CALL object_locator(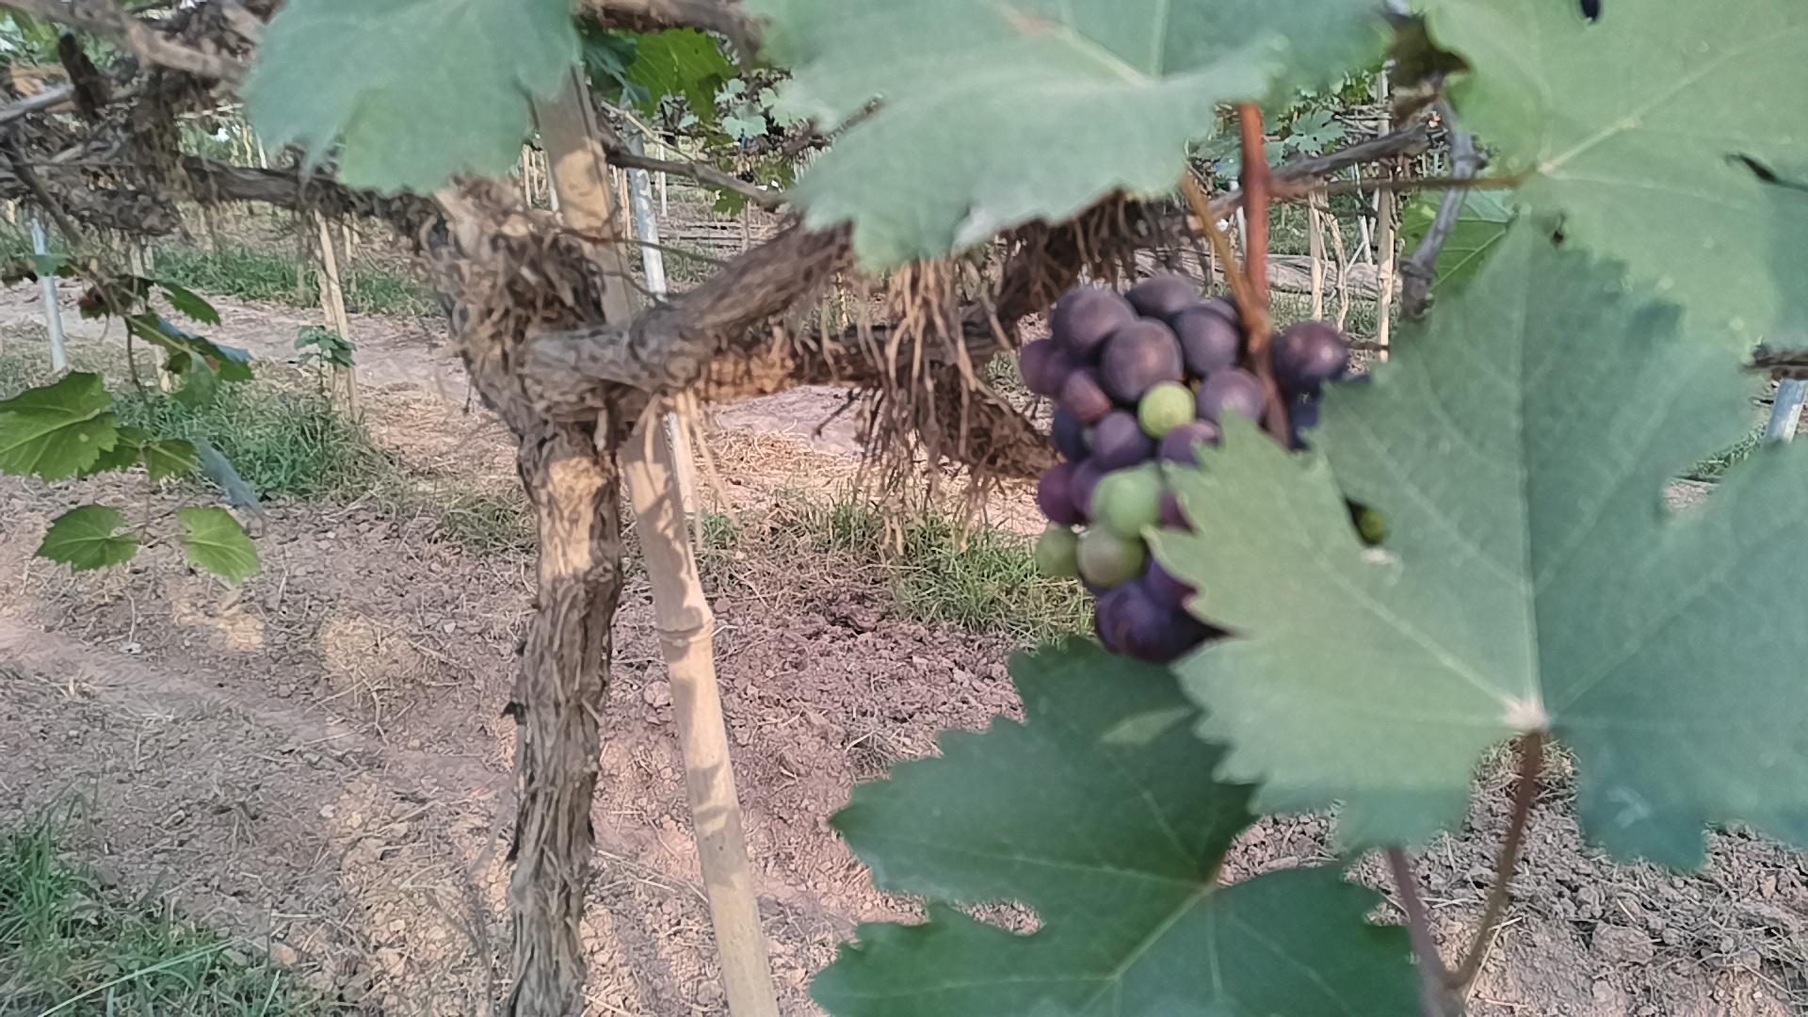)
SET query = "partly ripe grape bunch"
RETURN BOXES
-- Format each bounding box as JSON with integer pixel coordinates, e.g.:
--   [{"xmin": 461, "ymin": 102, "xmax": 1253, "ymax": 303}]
[{"xmin": 1020, "ymin": 273, "xmax": 1366, "ymax": 664}]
